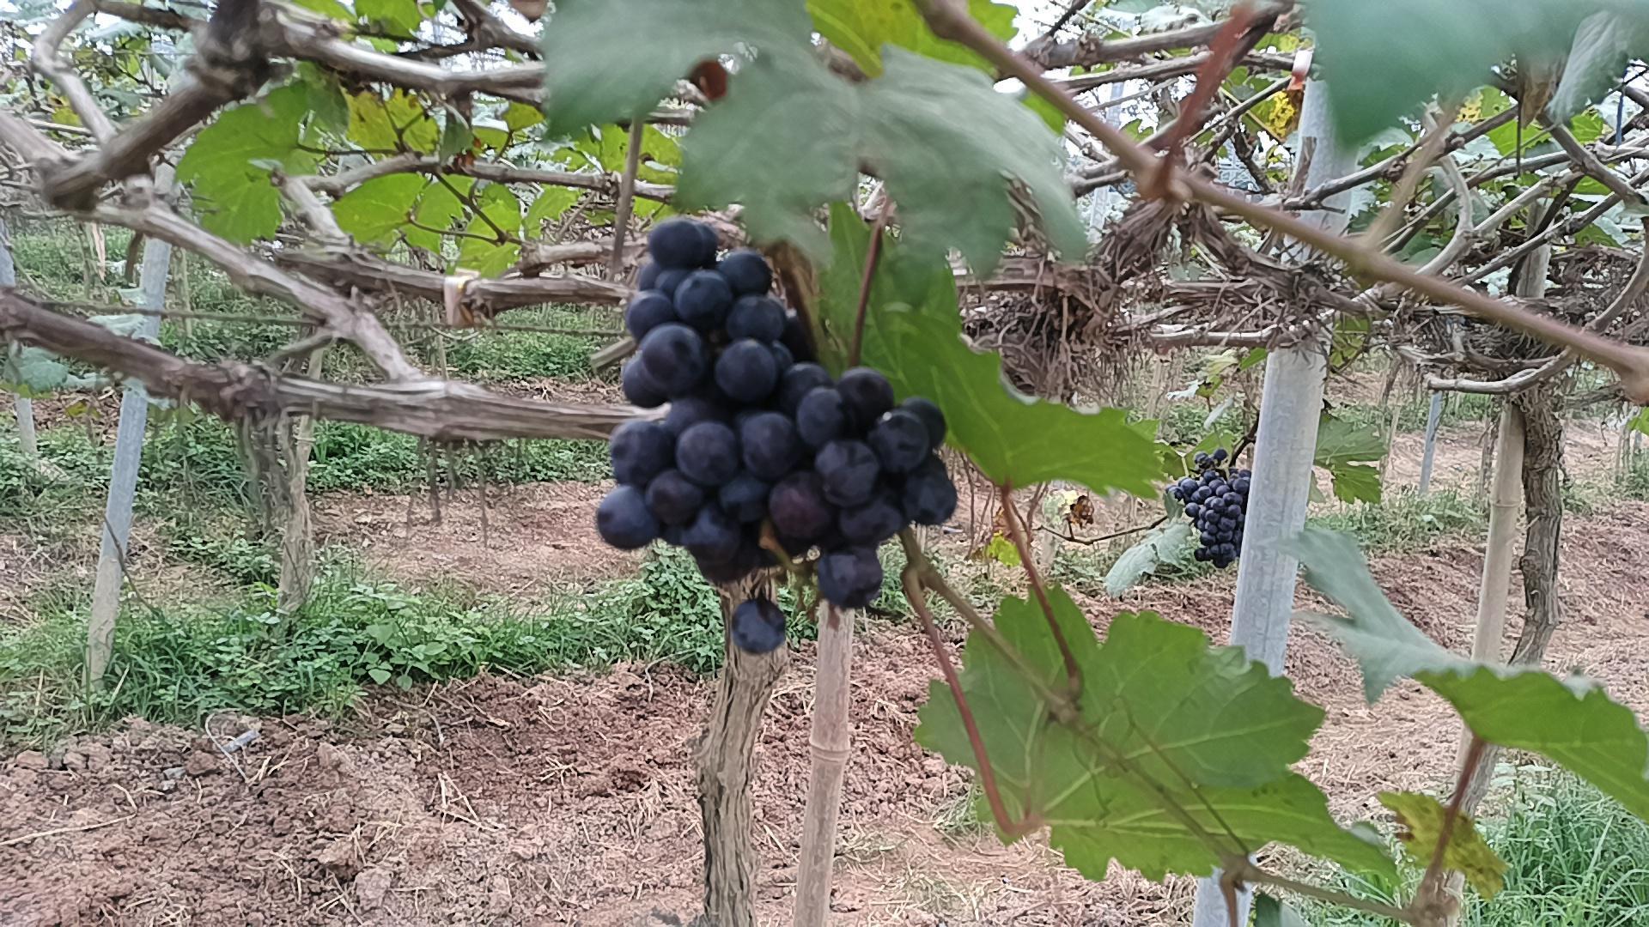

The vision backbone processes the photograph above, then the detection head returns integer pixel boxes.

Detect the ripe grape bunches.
[597,218,956,653]
[1166,448,1250,567]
